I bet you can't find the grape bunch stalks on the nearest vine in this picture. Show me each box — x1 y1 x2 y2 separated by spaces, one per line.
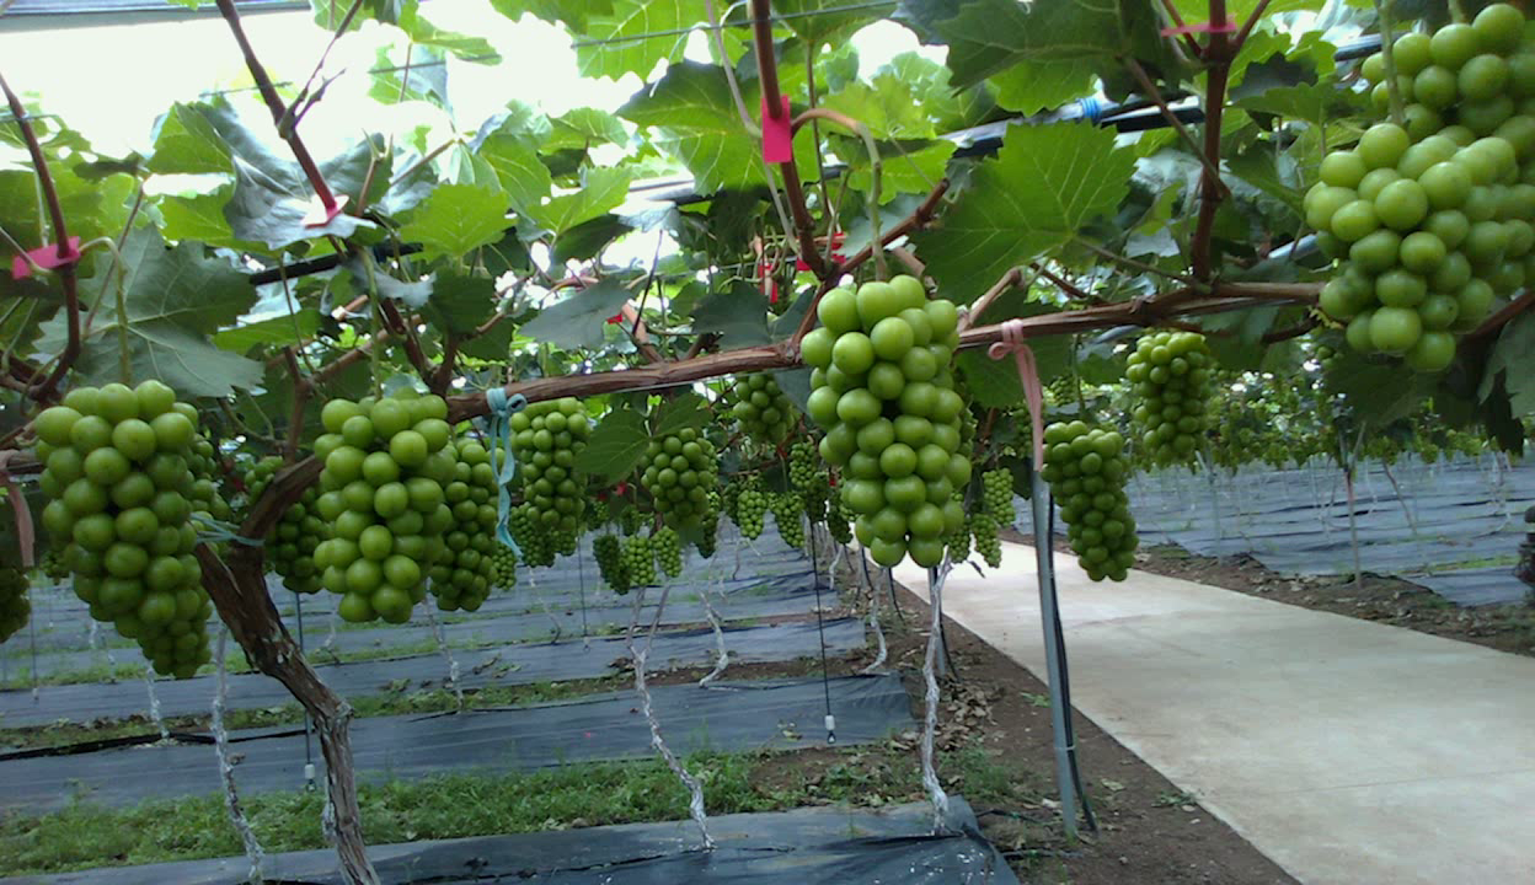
792 108 887 281
1380 0 1407 132
352 247 384 402
81 237 133 388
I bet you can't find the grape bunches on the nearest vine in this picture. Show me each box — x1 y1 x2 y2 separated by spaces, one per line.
311 385 458 626
1301 123 1534 374
33 377 204 637
1360 2 1534 188
798 274 973 569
